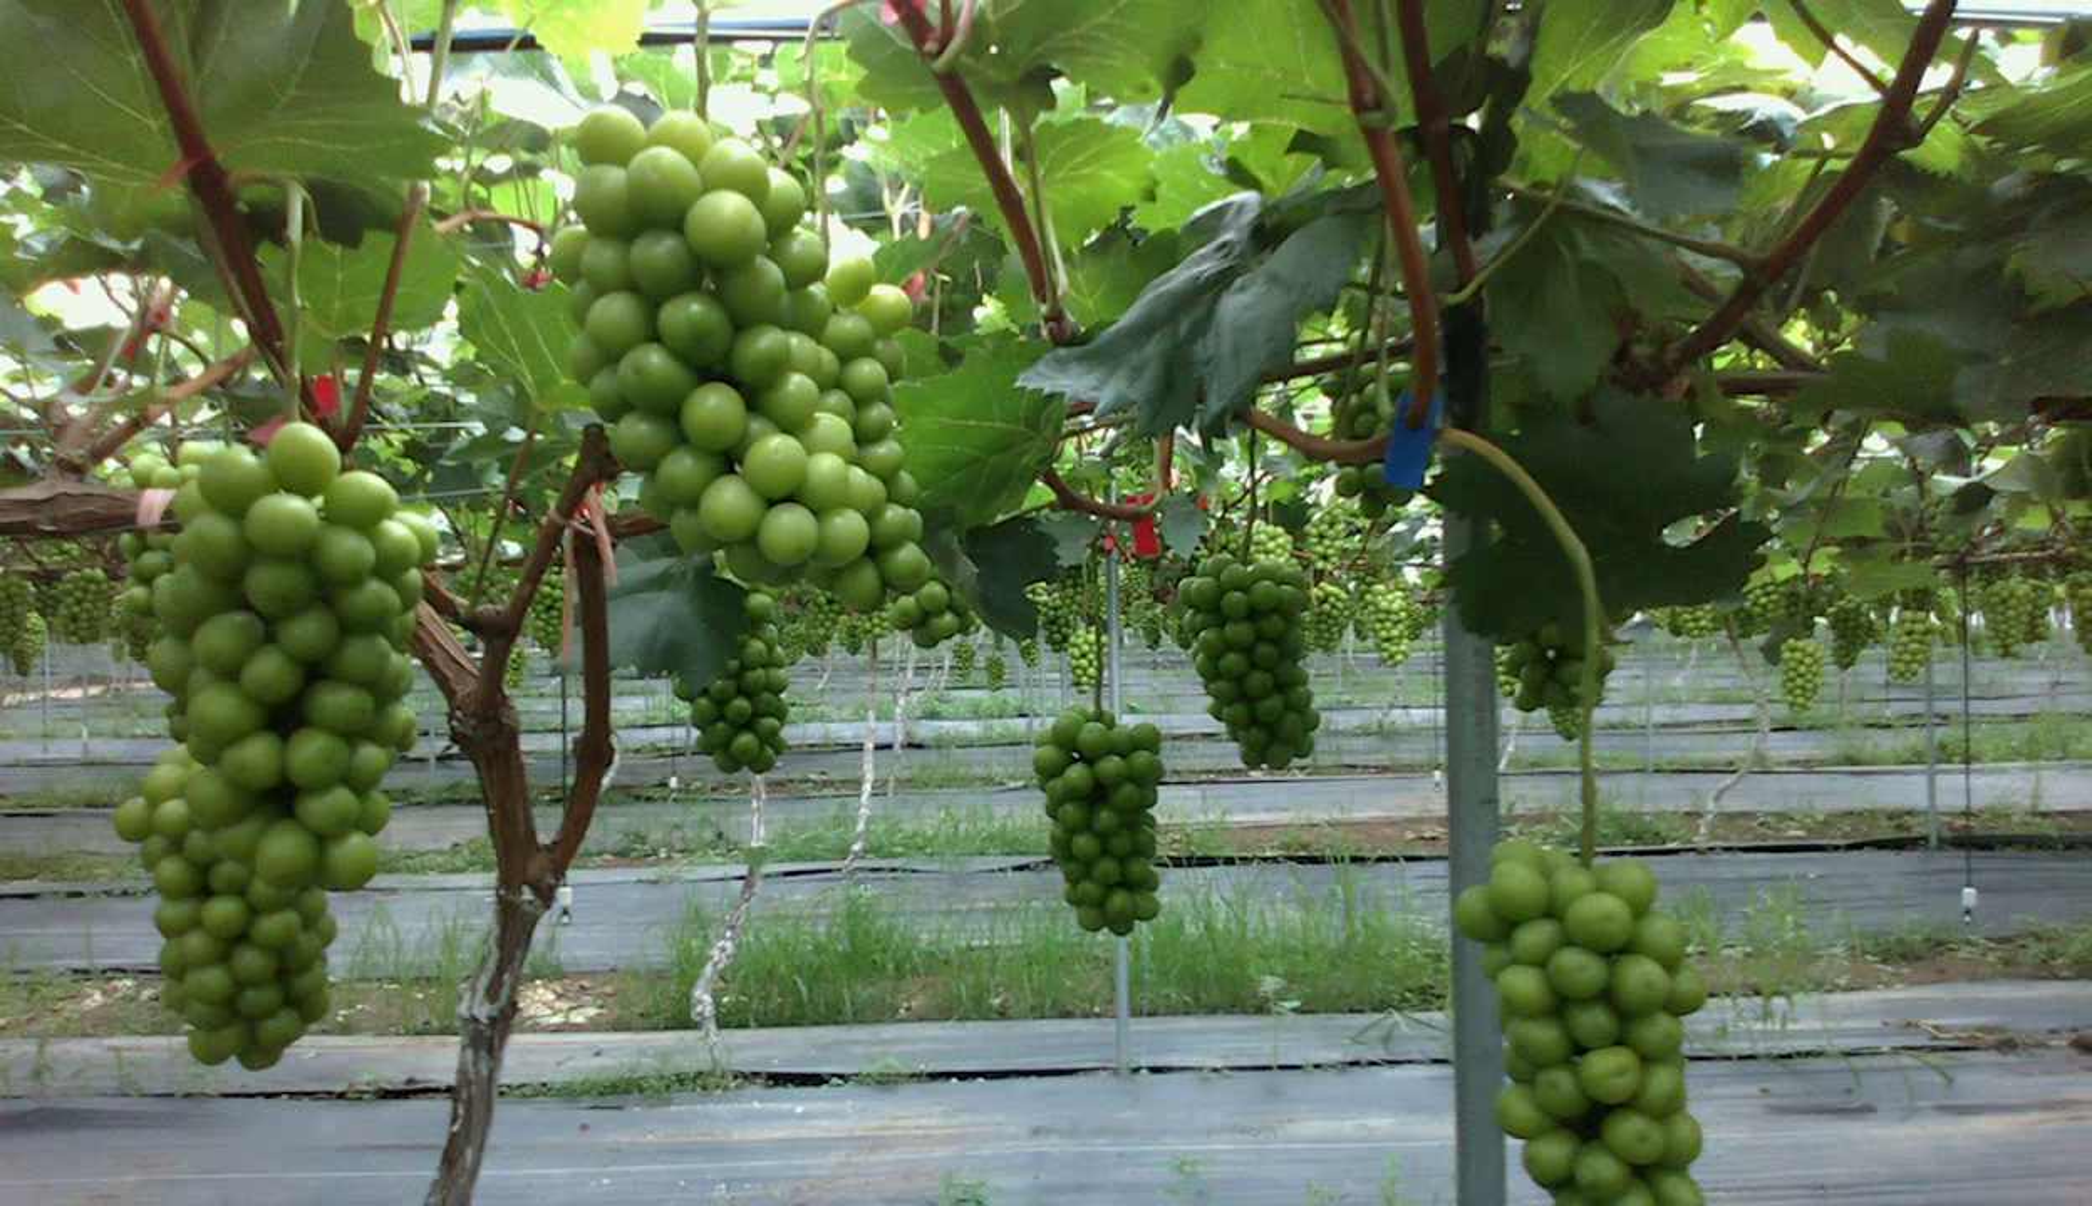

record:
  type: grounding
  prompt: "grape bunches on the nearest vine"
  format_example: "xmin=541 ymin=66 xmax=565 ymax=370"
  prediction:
xmin=548 ymin=104 xmax=930 ymax=611
xmin=146 ymin=420 xmax=438 ymax=889
xmin=114 ymin=744 xmax=340 ymax=1074
xmin=1452 ymin=836 xmax=1706 ymax=1204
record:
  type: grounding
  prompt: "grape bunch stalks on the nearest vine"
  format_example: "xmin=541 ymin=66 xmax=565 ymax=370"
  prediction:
xmin=226 ymin=167 xmax=308 ymax=422
xmin=1437 ymin=427 xmax=1597 ymax=866
xmin=692 ymin=0 xmax=712 ymax=122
